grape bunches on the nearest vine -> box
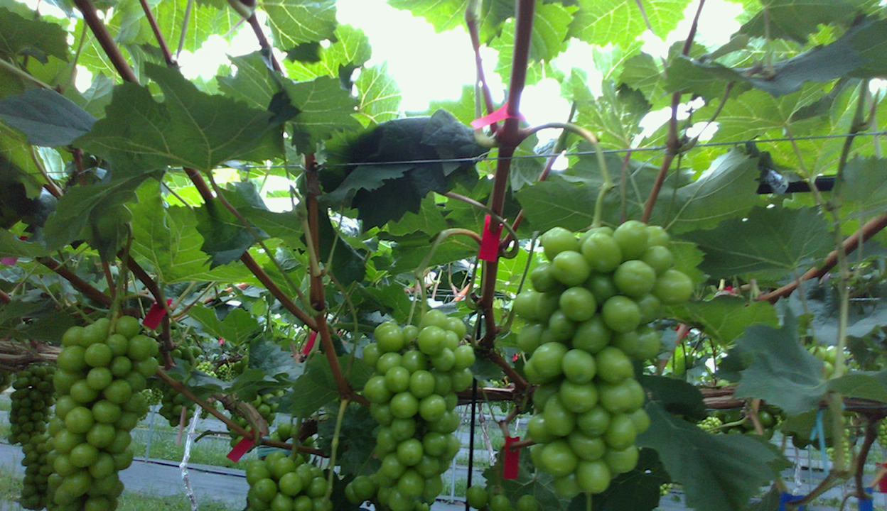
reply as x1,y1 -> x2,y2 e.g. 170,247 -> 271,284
362,309 -> 475,510
512,219 -> 692,498
246,451 -> 327,510
44,315 -> 159,510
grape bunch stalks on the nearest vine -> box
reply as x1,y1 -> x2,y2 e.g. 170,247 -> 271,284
109,222 -> 134,336
517,120 -> 617,229
414,228 -> 482,317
